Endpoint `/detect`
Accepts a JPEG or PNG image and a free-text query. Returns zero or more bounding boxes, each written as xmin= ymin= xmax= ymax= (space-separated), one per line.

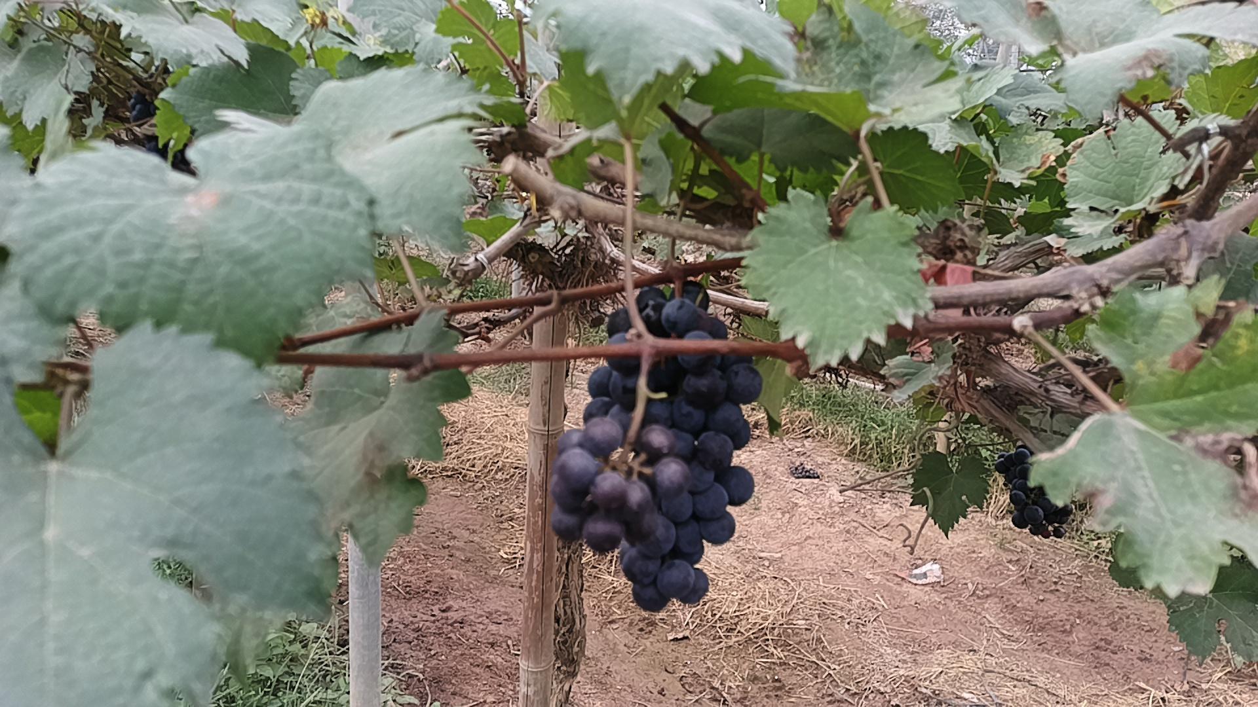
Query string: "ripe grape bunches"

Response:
xmin=995 ymin=445 xmax=1073 ymax=537
xmin=550 ymin=279 xmax=762 ymax=611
